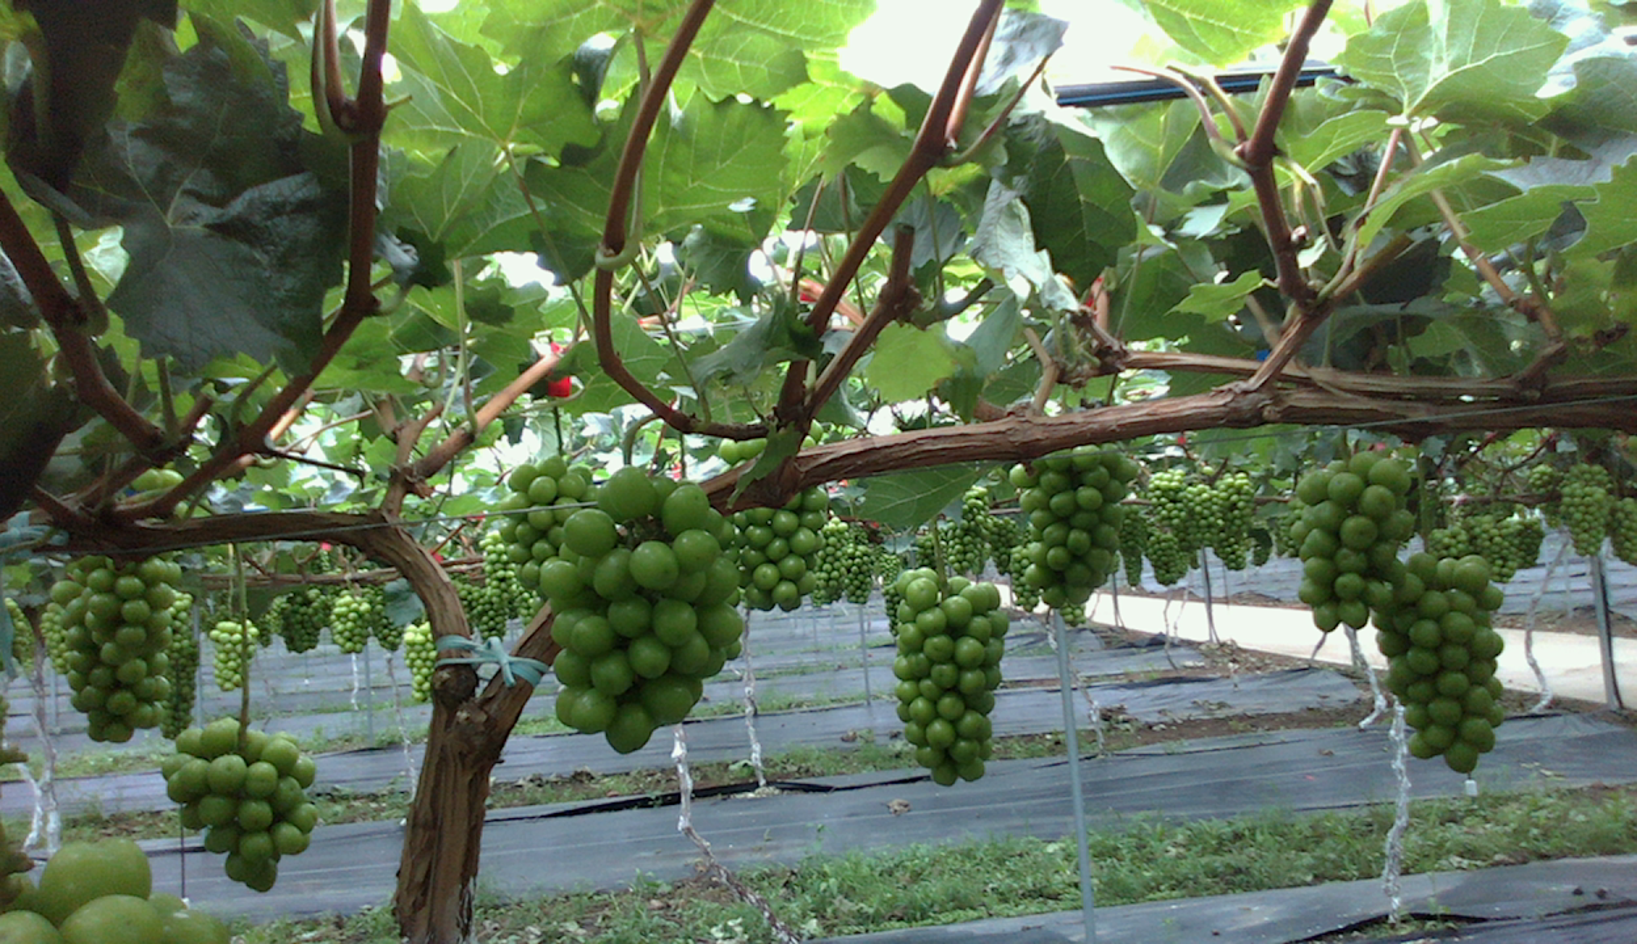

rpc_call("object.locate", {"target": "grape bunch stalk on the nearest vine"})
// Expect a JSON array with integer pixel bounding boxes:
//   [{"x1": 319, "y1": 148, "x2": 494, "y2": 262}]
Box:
[{"x1": 622, "y1": 413, "x2": 662, "y2": 464}]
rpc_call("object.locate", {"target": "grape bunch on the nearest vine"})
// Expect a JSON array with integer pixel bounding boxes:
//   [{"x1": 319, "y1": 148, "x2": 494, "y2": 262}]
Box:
[{"x1": 539, "y1": 467, "x2": 744, "y2": 753}]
